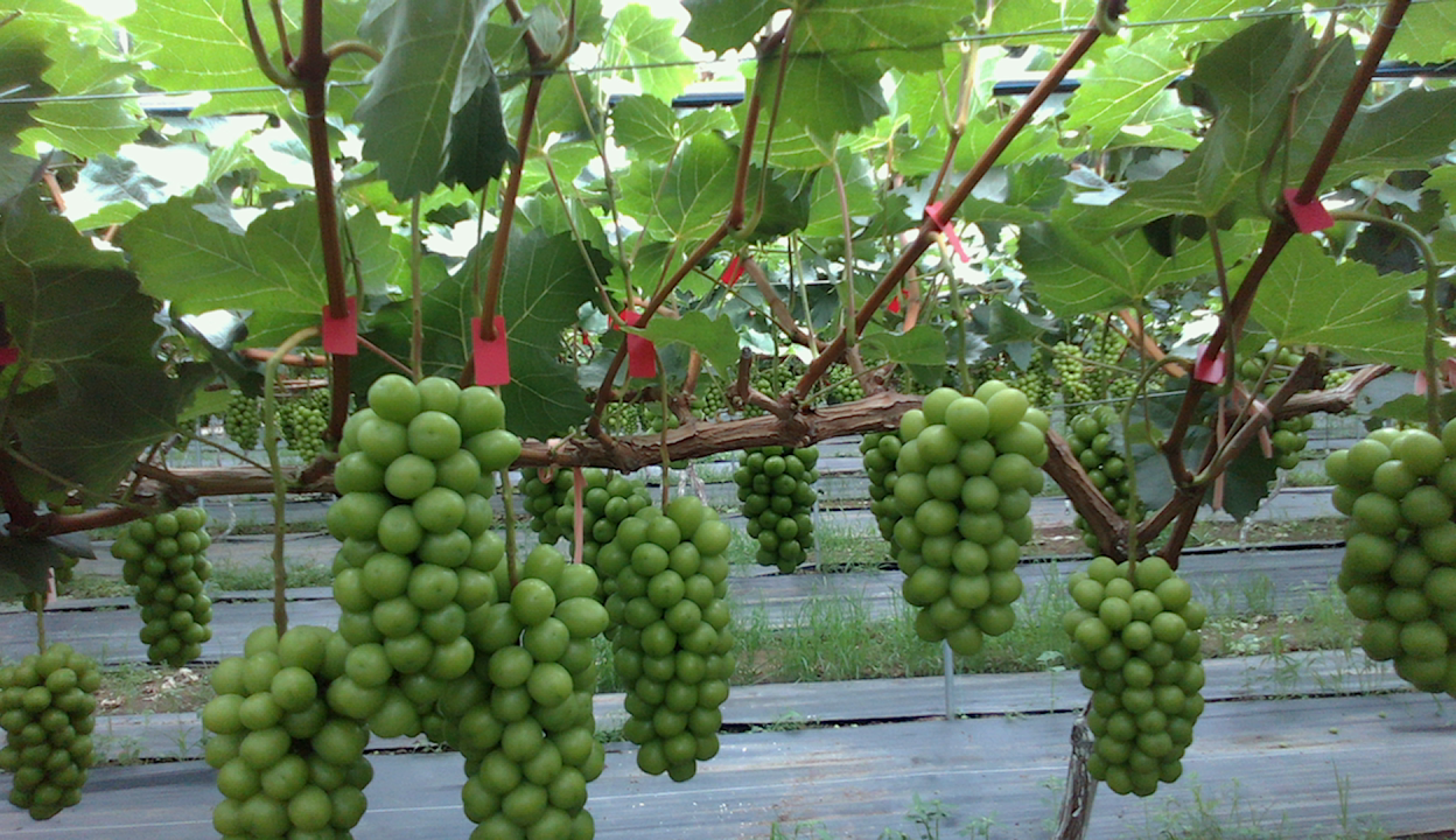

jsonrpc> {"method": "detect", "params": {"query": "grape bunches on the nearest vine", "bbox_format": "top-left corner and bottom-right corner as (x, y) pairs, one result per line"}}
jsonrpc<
(439, 545), (609, 839)
(325, 376), (520, 737)
(1322, 420), (1455, 695)
(202, 624), (372, 839)
(1062, 556), (1206, 796)
(894, 378), (1053, 657)
(598, 496), (734, 782)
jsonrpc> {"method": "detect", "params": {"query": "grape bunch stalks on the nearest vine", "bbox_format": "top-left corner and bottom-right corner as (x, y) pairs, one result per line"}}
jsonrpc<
(1330, 209), (1443, 441)
(929, 231), (974, 397)
(501, 469), (516, 590)
(264, 325), (322, 640)
(656, 351), (668, 516)
(1122, 356), (1195, 583)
